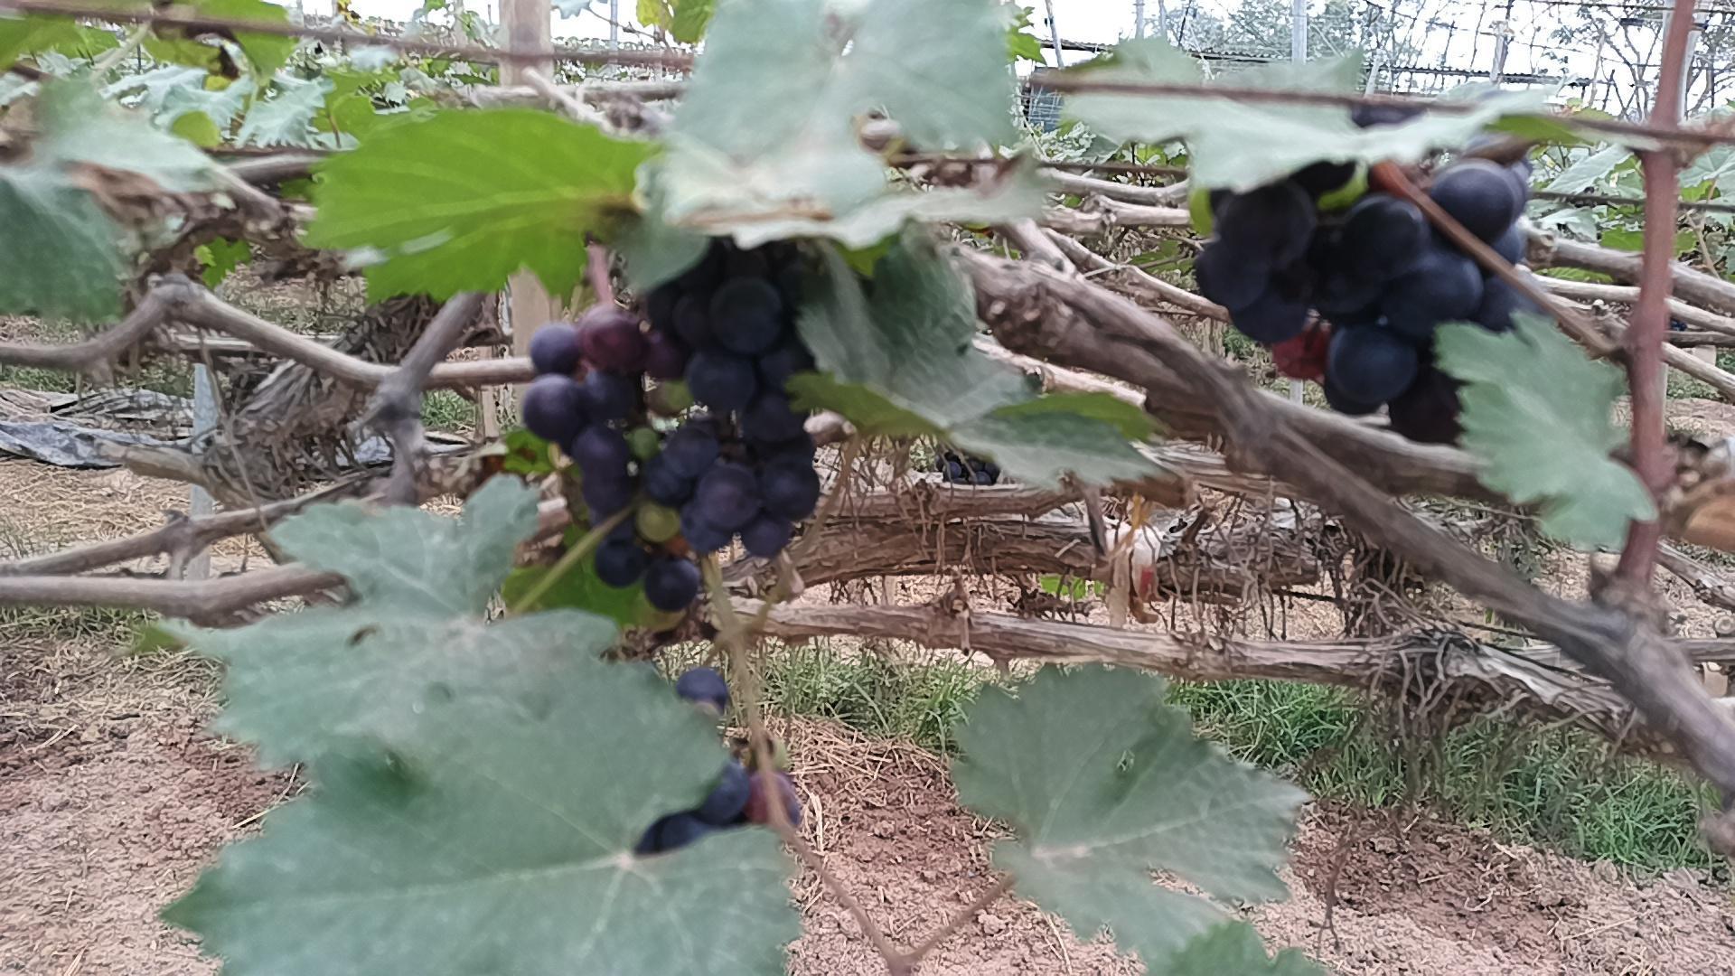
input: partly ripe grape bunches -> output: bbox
[523,242,819,611]
[634,666,802,855]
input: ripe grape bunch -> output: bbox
[1193,99,1533,439]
